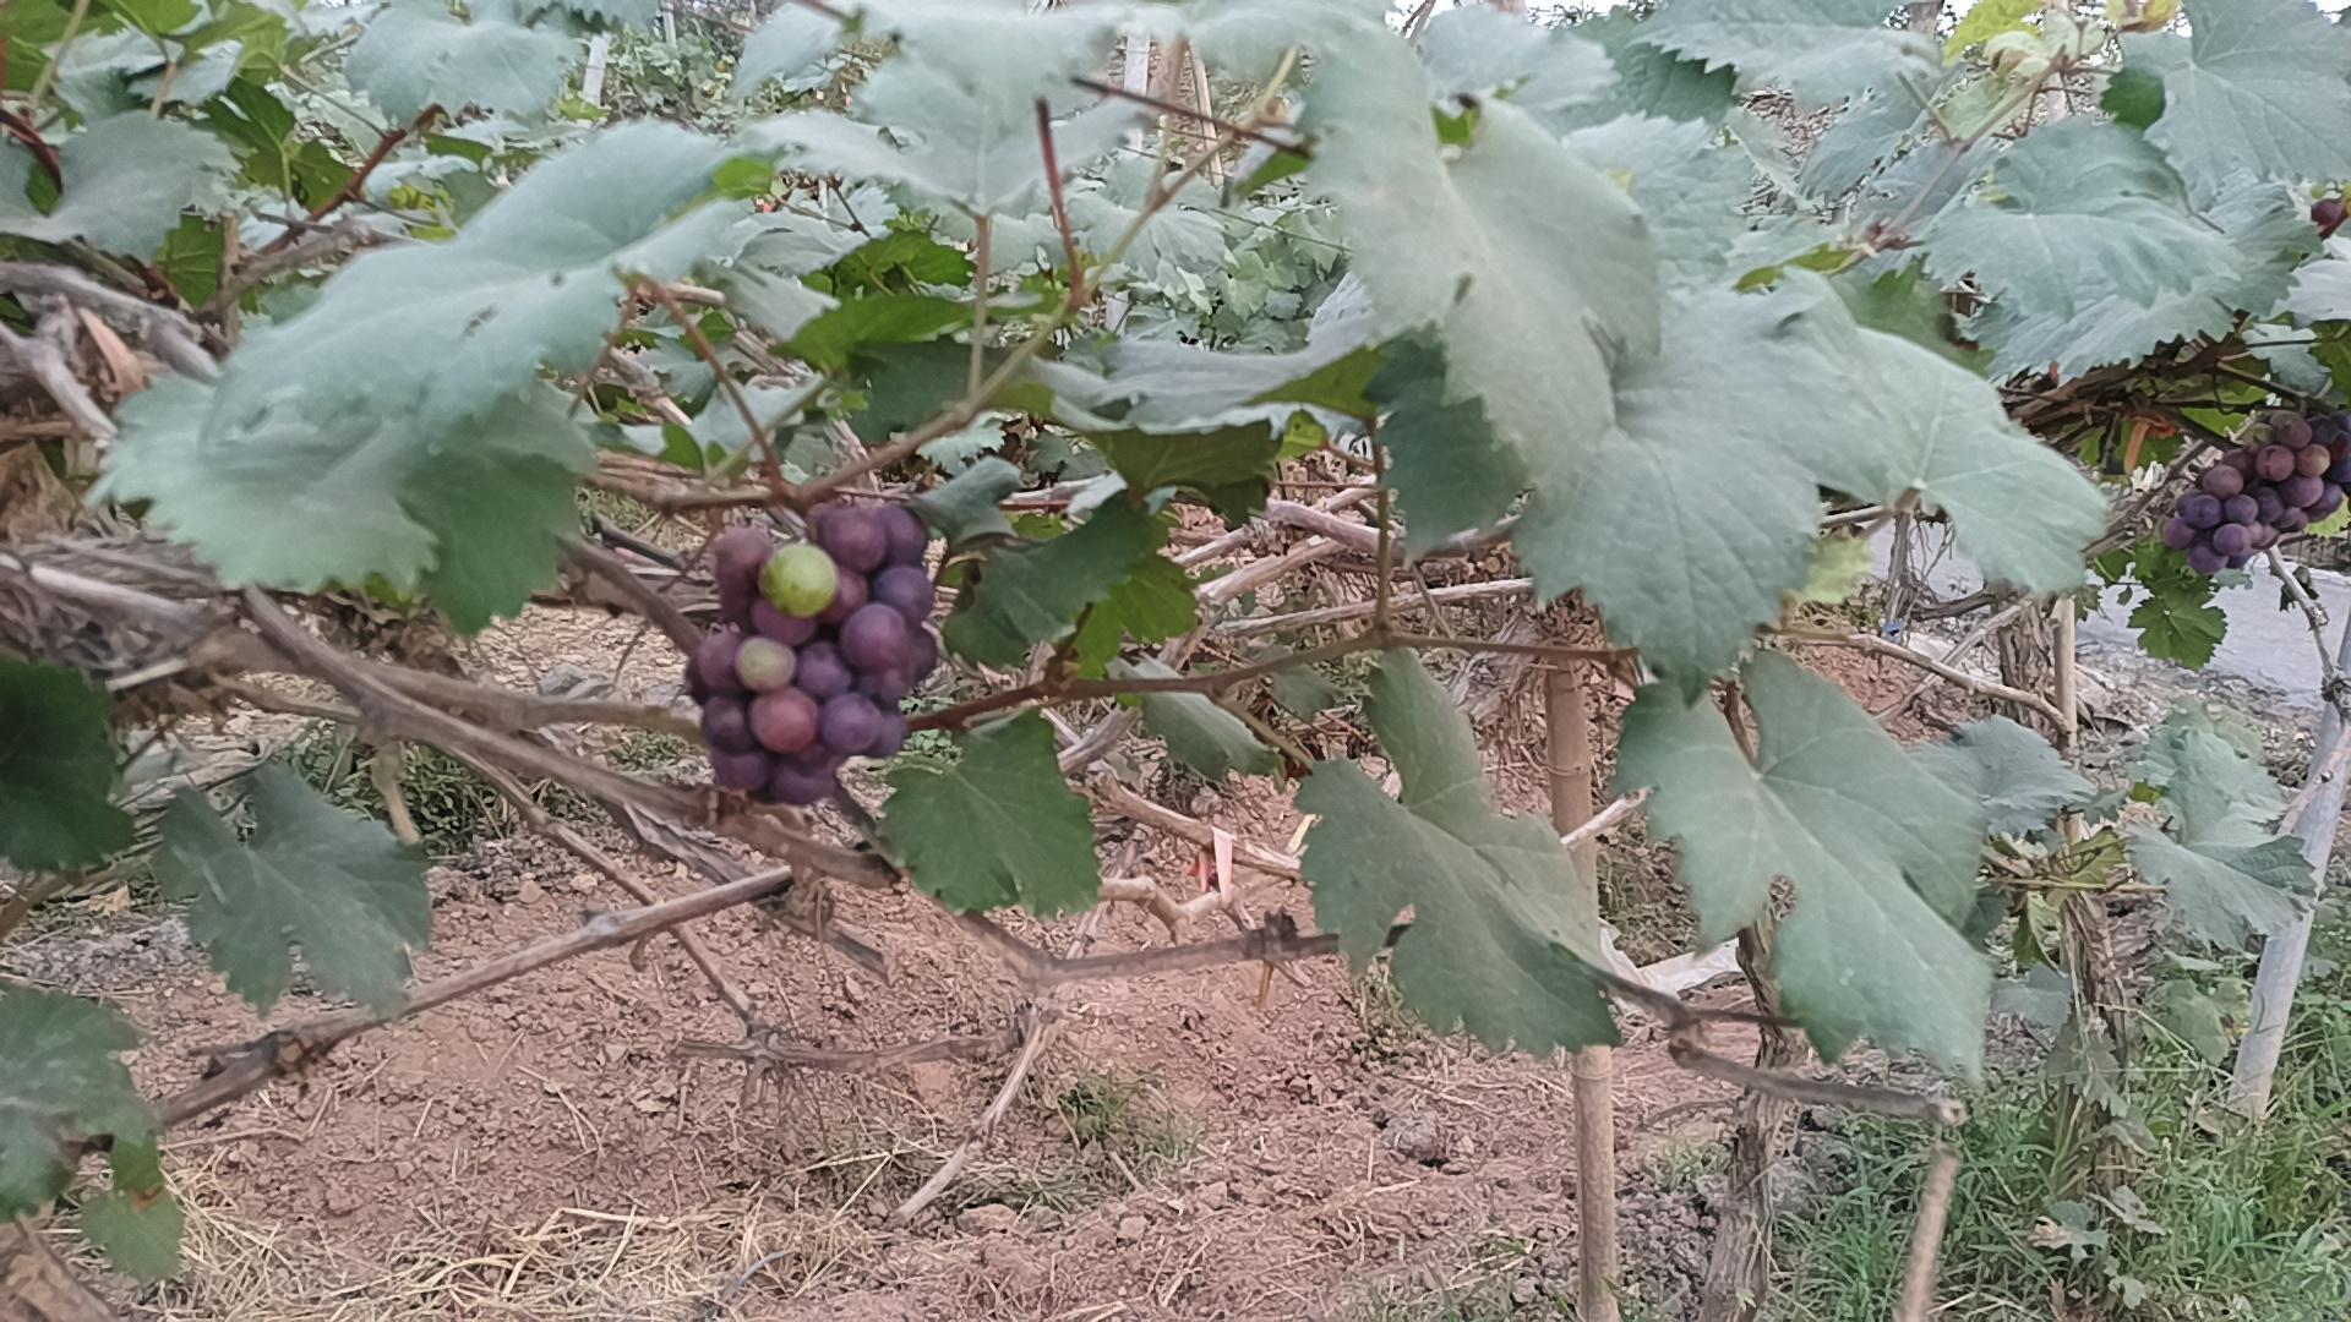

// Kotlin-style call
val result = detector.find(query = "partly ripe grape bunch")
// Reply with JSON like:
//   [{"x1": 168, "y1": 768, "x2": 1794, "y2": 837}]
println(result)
[{"x1": 687, "y1": 499, "x2": 939, "y2": 804}]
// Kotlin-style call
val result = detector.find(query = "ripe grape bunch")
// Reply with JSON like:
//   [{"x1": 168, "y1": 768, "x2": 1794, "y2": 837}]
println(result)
[{"x1": 2162, "y1": 413, "x2": 2350, "y2": 577}]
